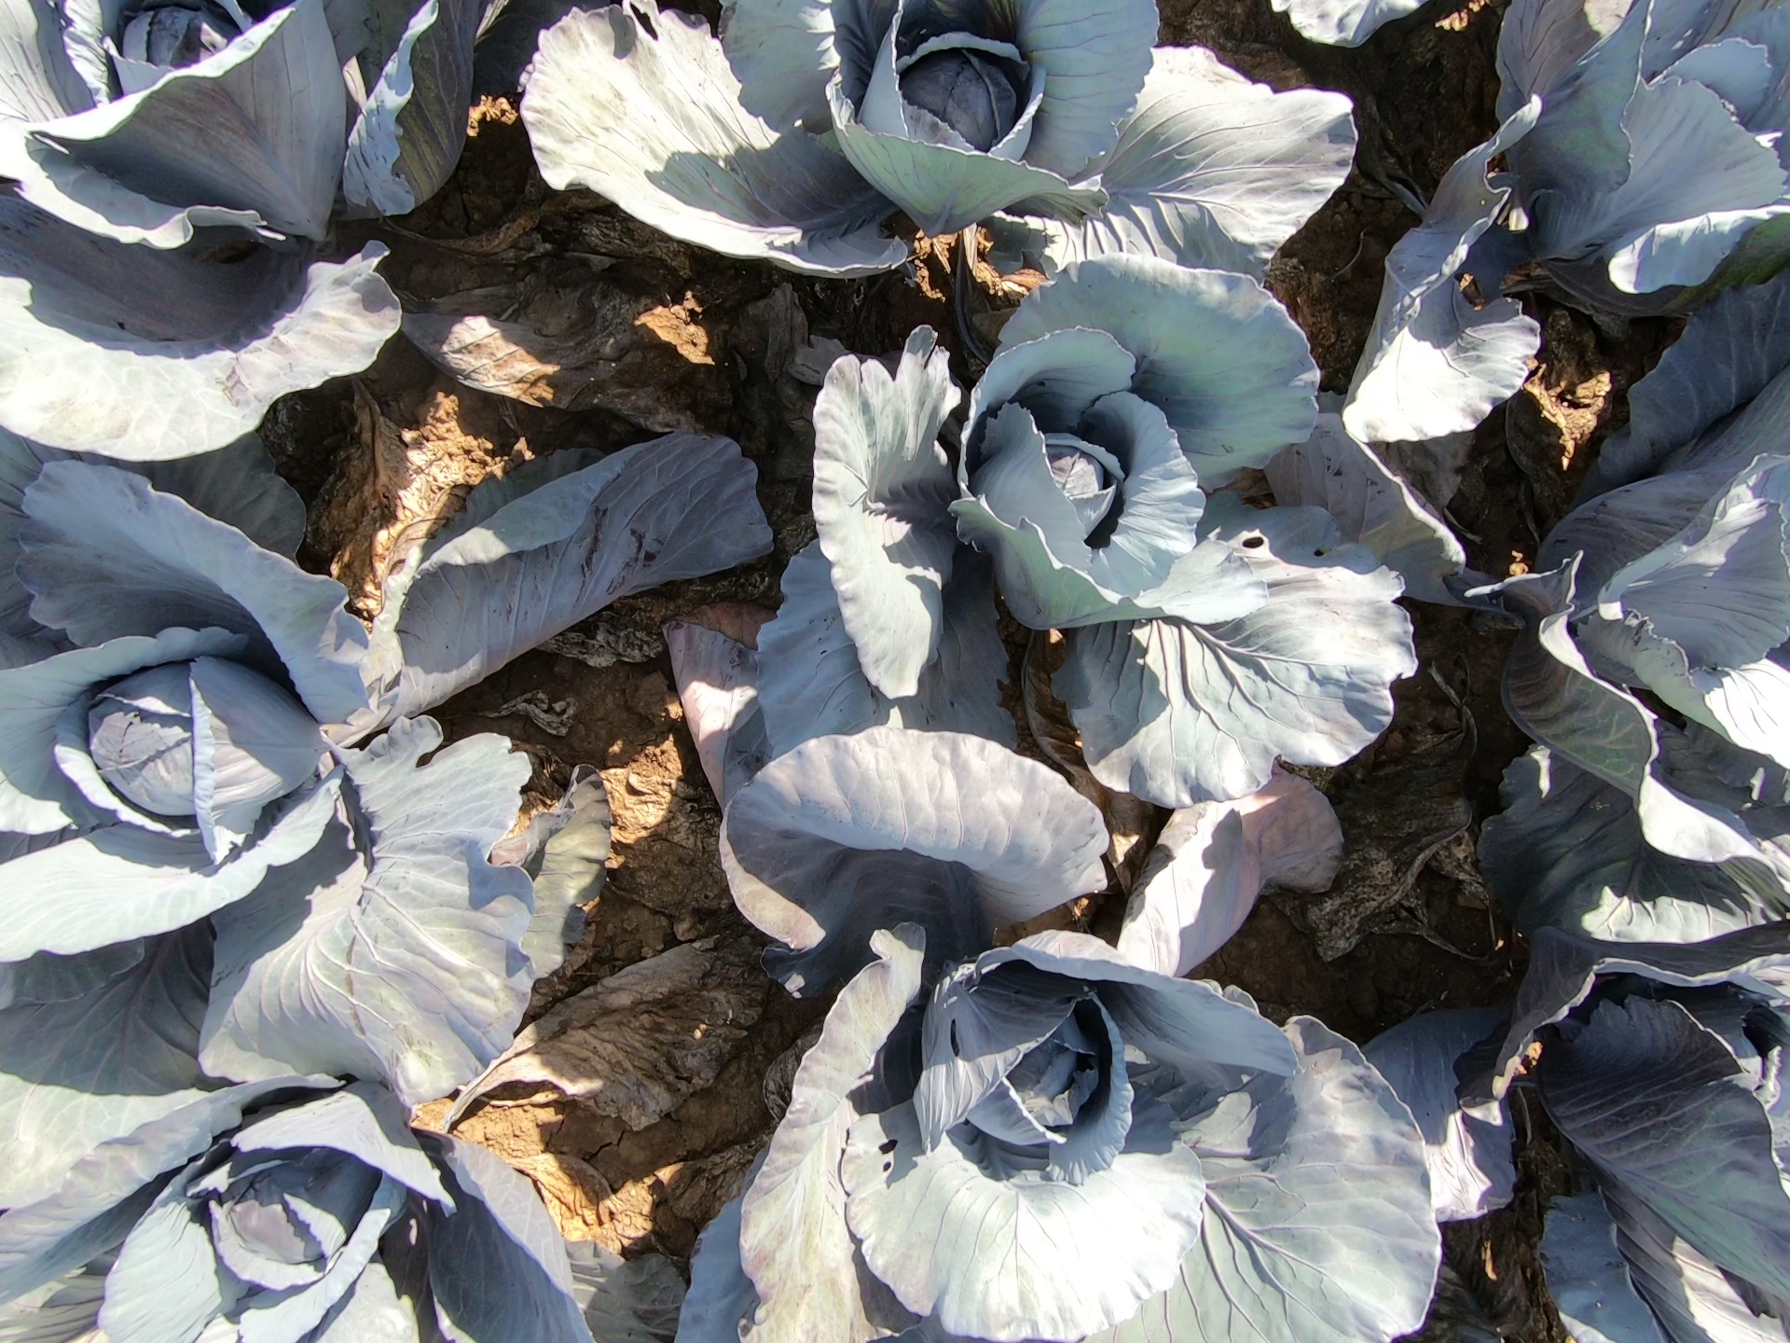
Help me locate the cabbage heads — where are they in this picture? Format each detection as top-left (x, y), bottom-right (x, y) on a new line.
top-left (215, 1100), bottom-right (389, 1264)
top-left (1002, 434), bottom-right (1114, 551)
top-left (117, 7), bottom-right (277, 167)
top-left (884, 48), bottom-right (1022, 196)
top-left (85, 662), bottom-right (288, 818)
top-left (947, 979), bottom-right (1091, 1129)
top-left (1630, 1009), bottom-right (1779, 1140)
